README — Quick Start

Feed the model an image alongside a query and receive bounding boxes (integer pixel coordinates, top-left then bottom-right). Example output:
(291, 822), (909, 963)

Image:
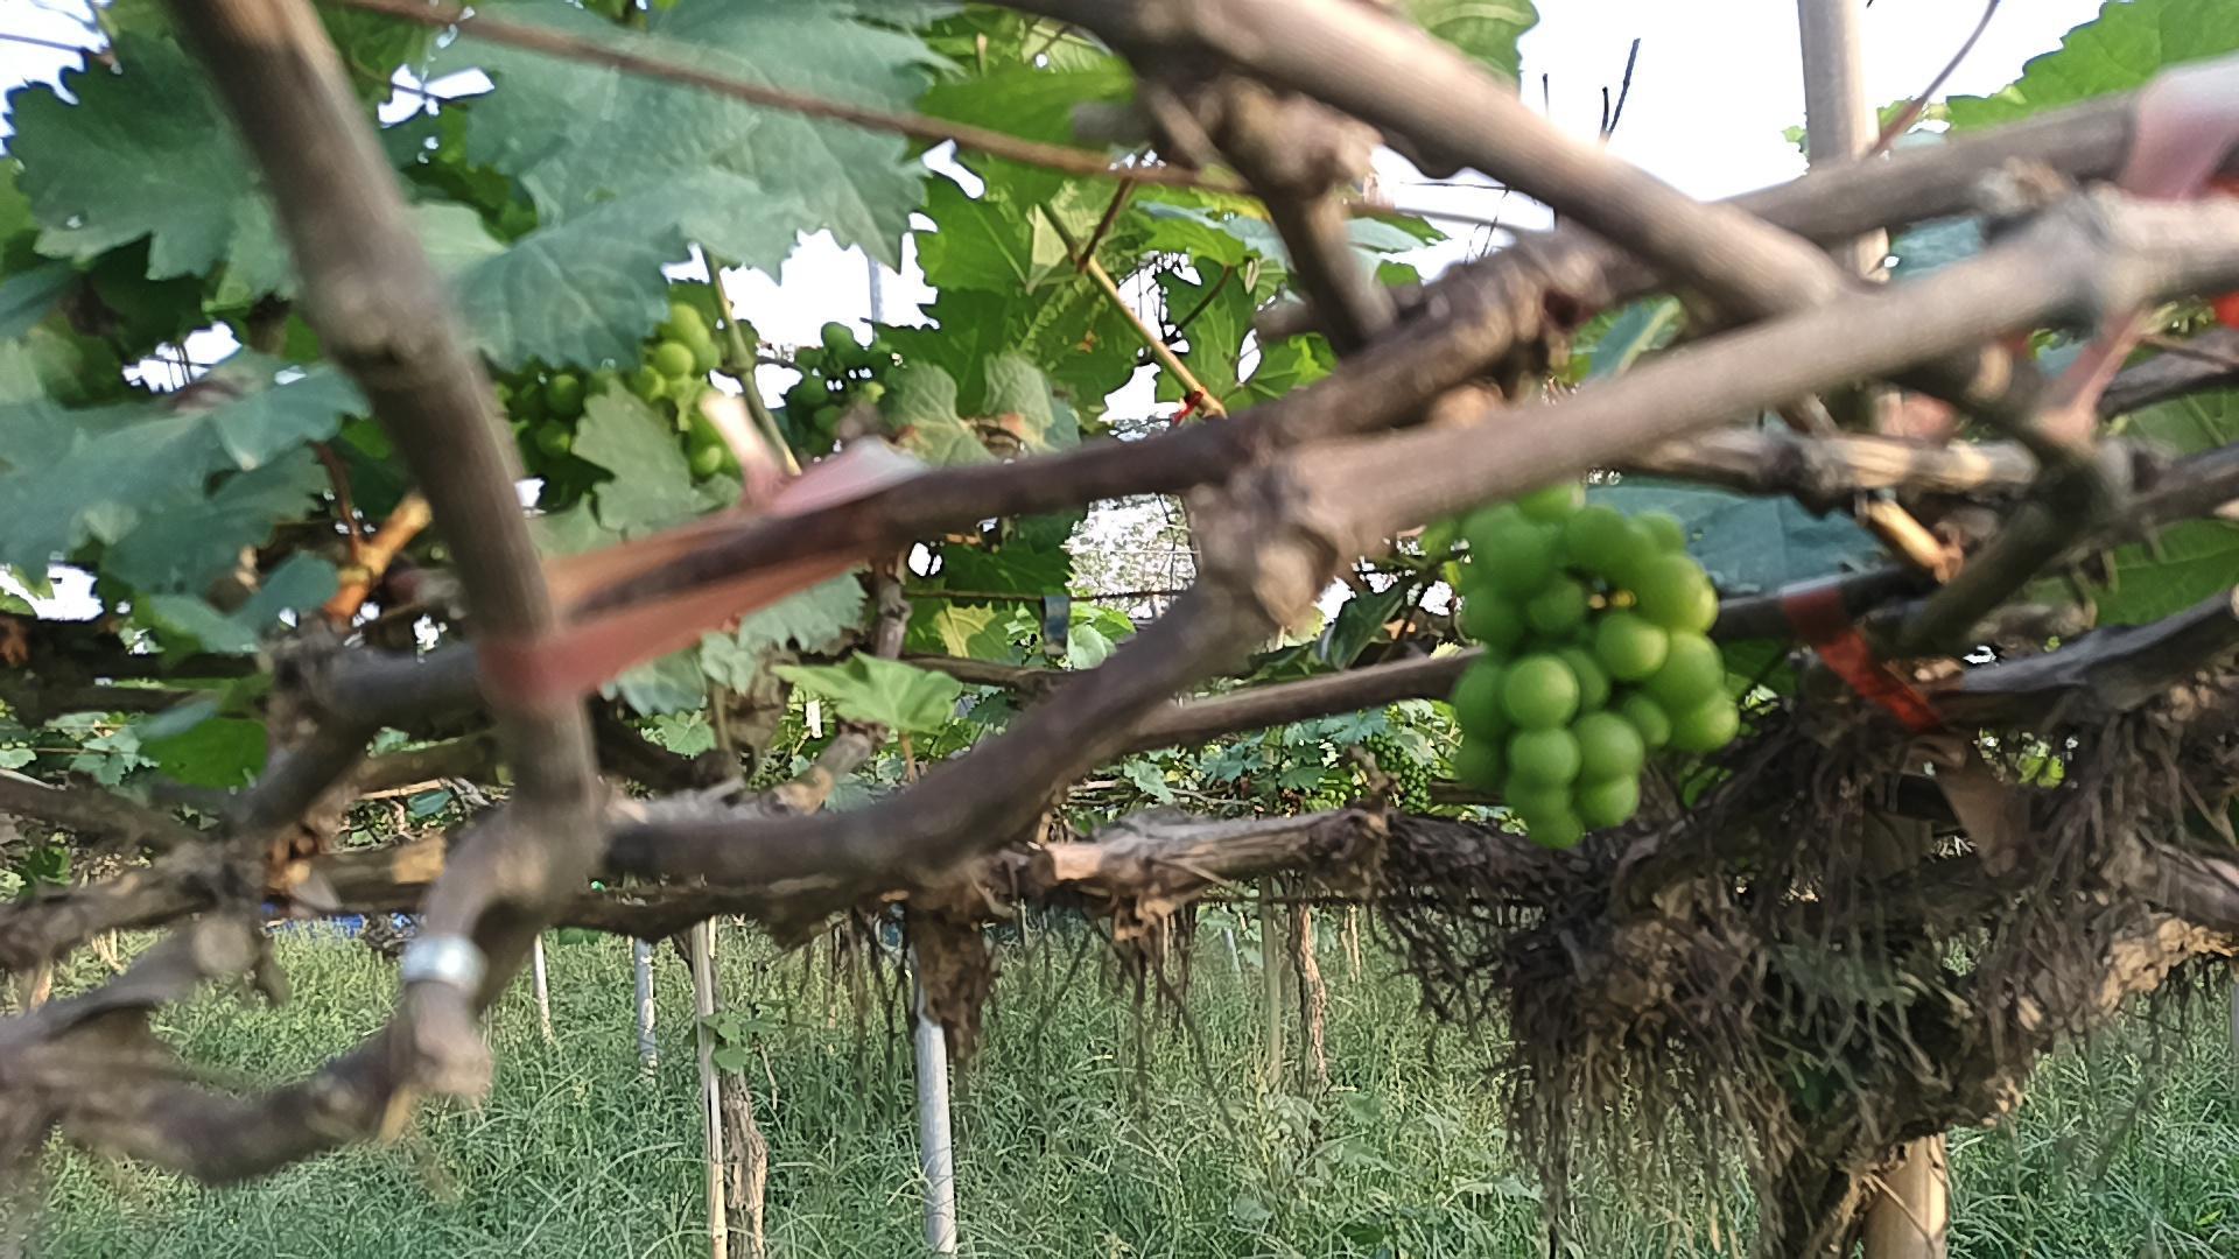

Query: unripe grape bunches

(505, 360), (584, 458)
(1450, 486), (1738, 845)
(629, 303), (723, 479)
(777, 321), (898, 457)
